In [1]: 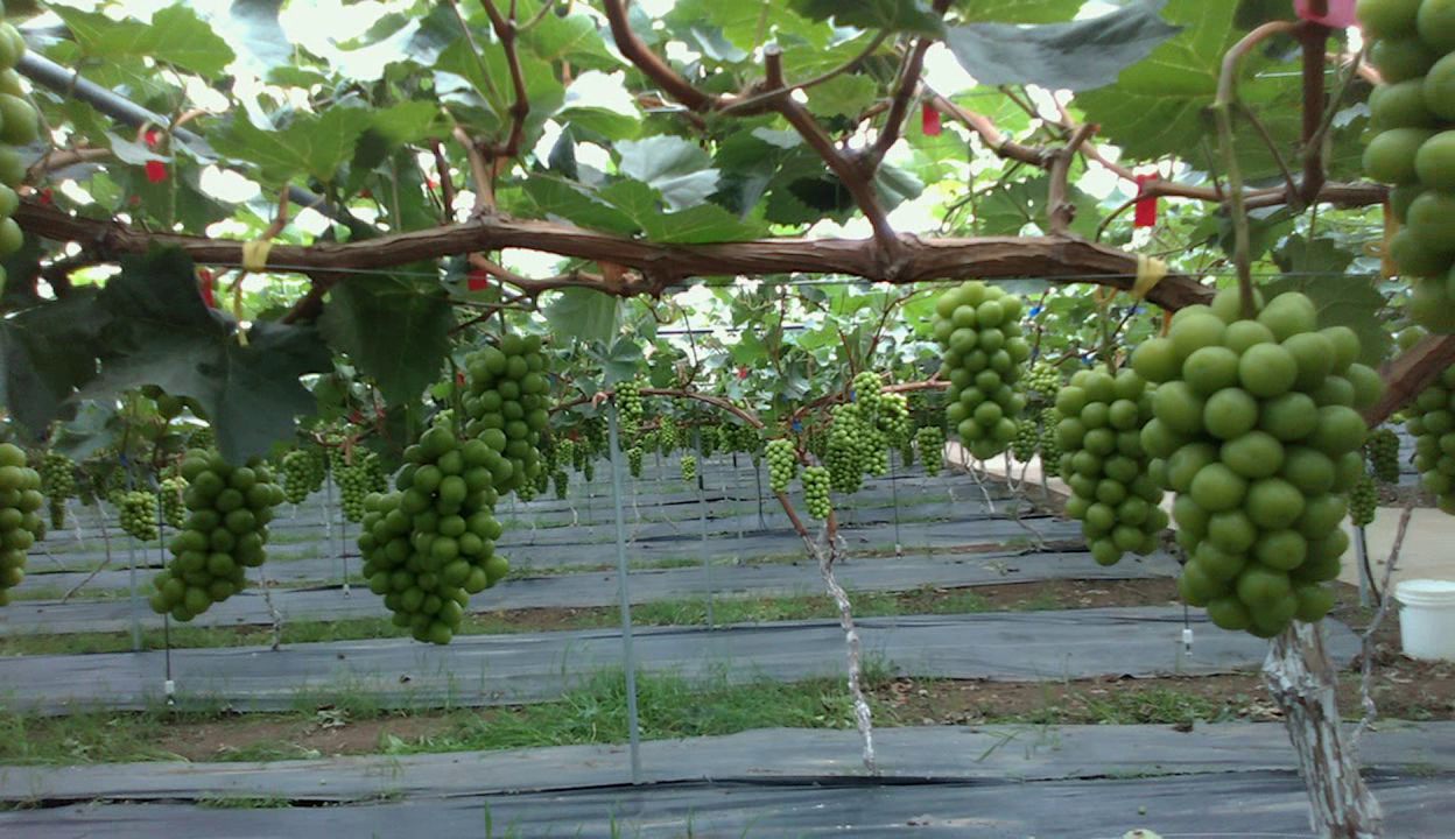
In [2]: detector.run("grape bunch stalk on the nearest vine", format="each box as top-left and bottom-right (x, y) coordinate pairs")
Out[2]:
(1215, 21), (1295, 320)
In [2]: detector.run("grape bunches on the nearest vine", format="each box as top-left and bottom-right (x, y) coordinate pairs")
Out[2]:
(1355, 1), (1454, 337)
(0, 1), (38, 256)
(1129, 287), (1379, 639)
